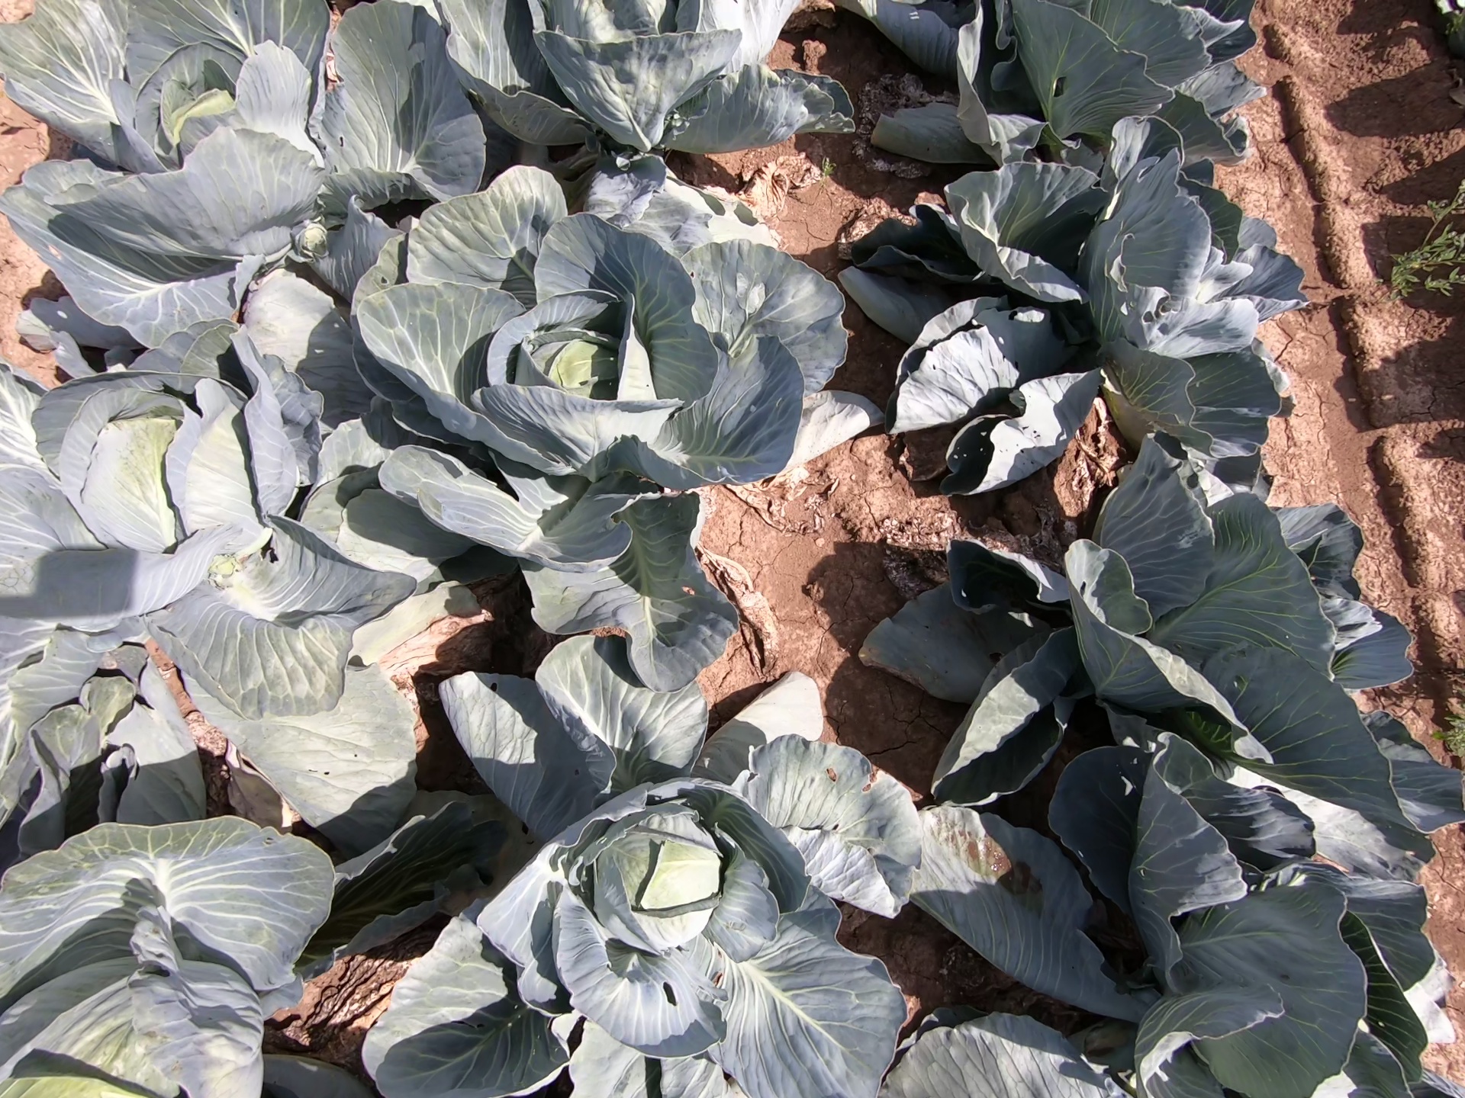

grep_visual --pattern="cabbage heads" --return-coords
[551,0,682,108]
[68,409,260,557]
[173,92,264,168]
[595,813,720,957]
[2,956,260,1096]
[1177,937,1383,1096]
[513,326,658,457]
